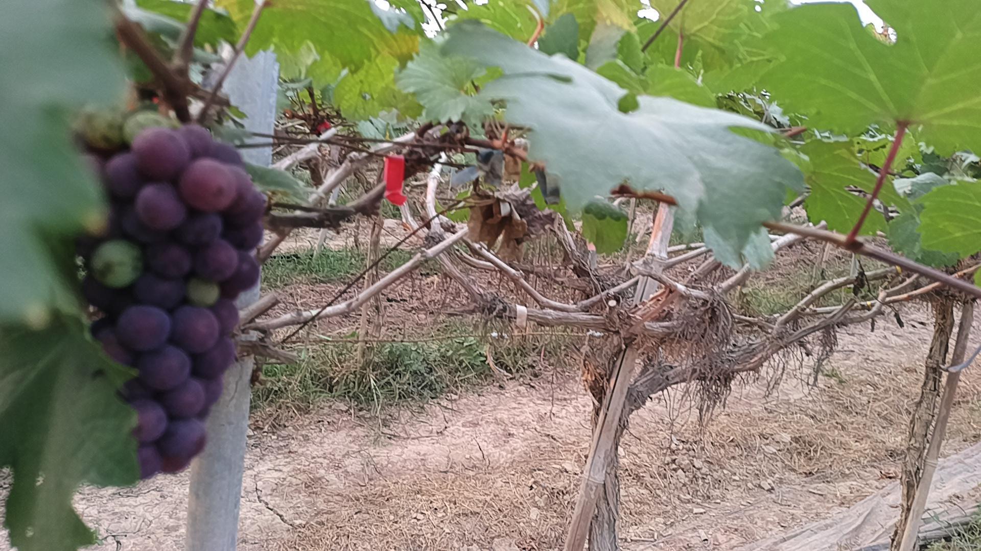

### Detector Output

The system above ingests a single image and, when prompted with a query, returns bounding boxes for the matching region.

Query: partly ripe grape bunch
[78,110,267,479]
